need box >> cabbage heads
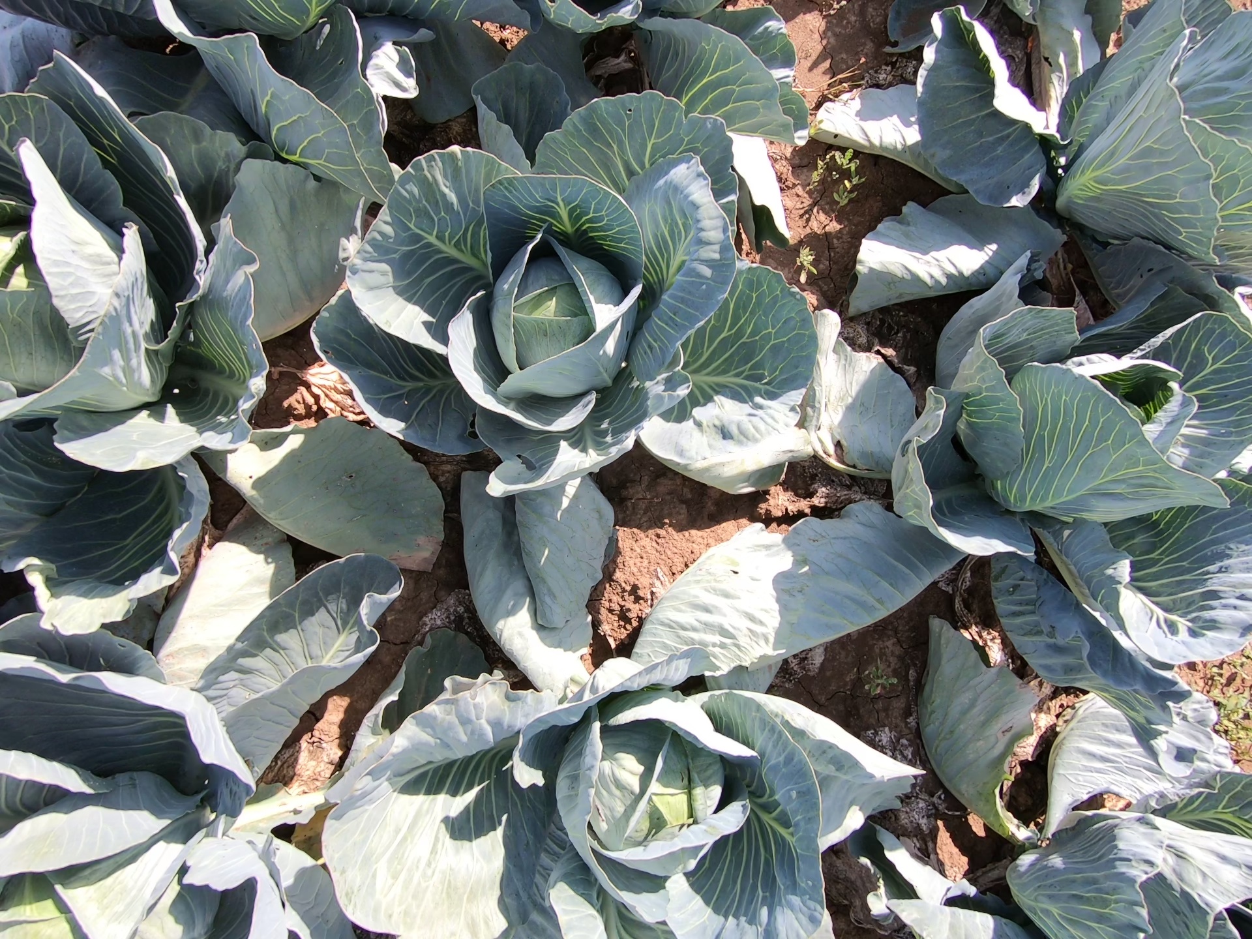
[578,696,717,856]
[501,261,616,383]
[2,231,135,392]
[1,797,215,937]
